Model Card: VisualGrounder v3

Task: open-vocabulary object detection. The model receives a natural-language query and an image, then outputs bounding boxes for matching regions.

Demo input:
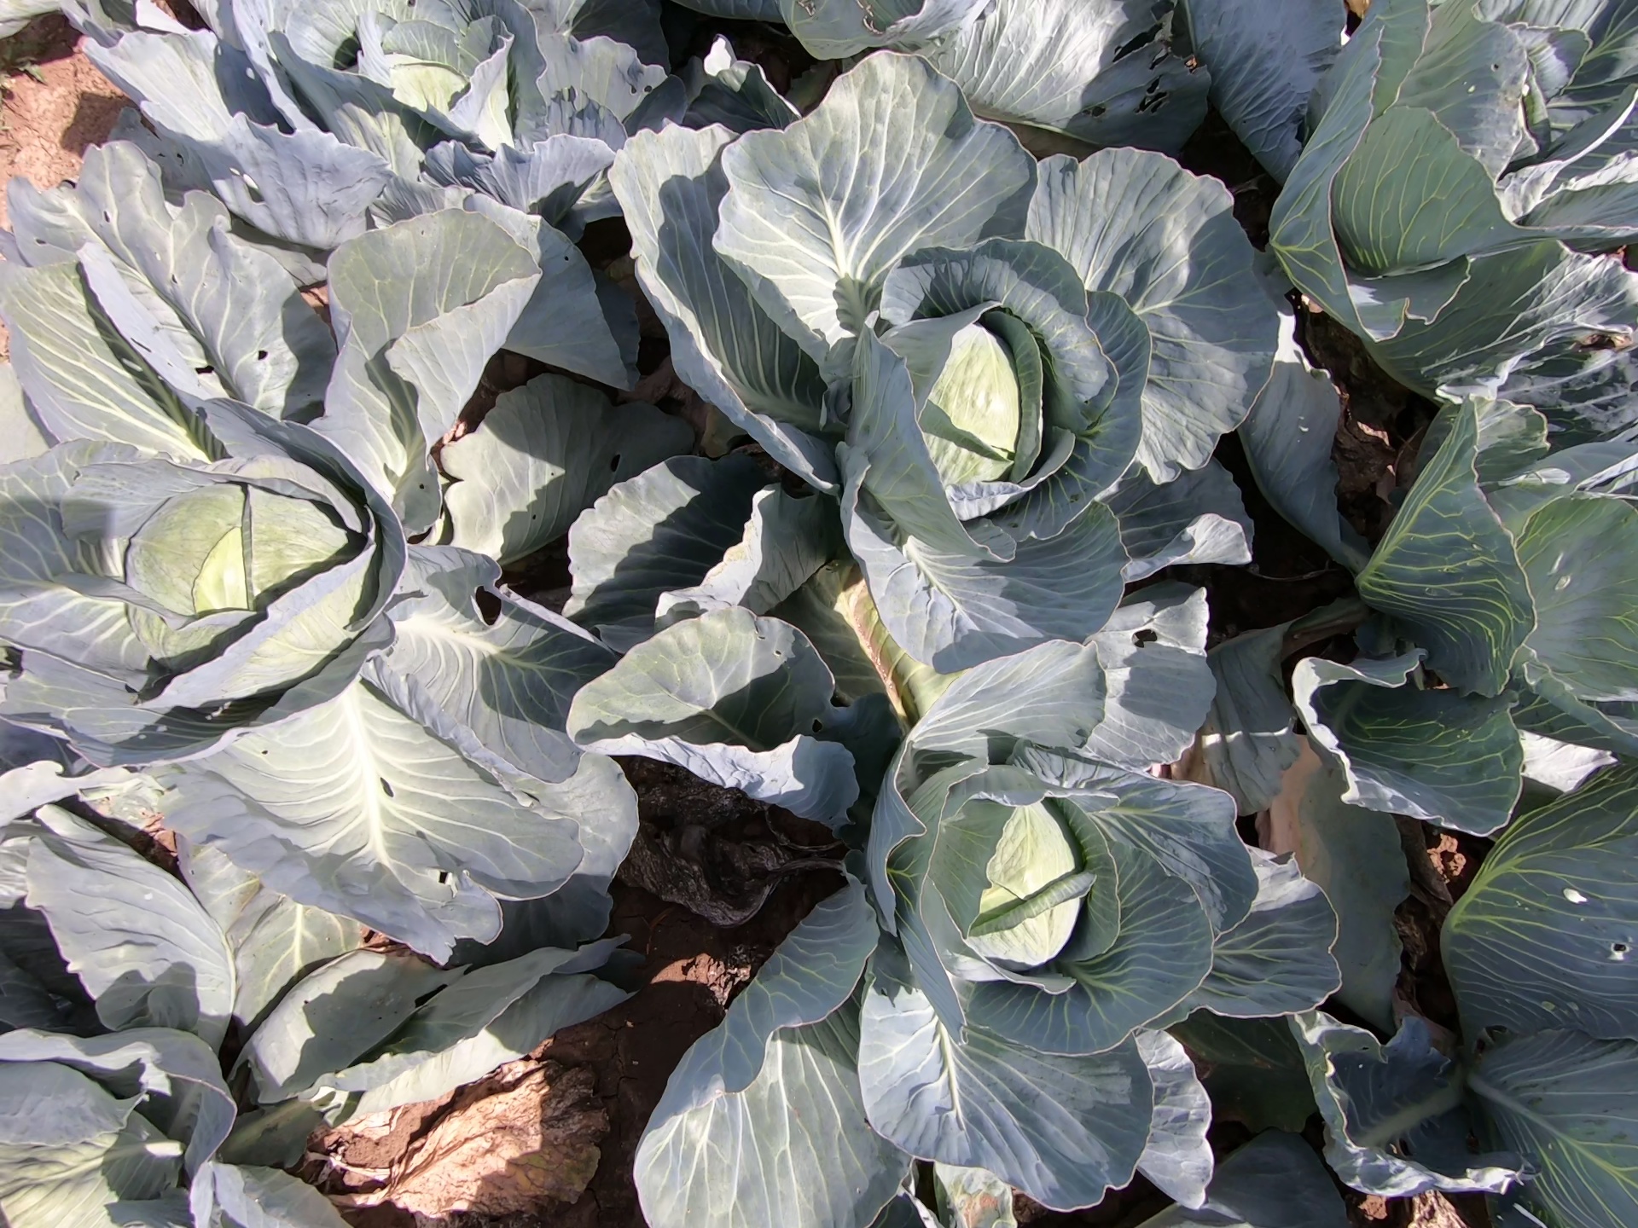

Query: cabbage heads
[868,318,1044,515]
[921,779,1086,976]
[129,459,375,694]
[359,55,487,179]
[3,1094,176,1225]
